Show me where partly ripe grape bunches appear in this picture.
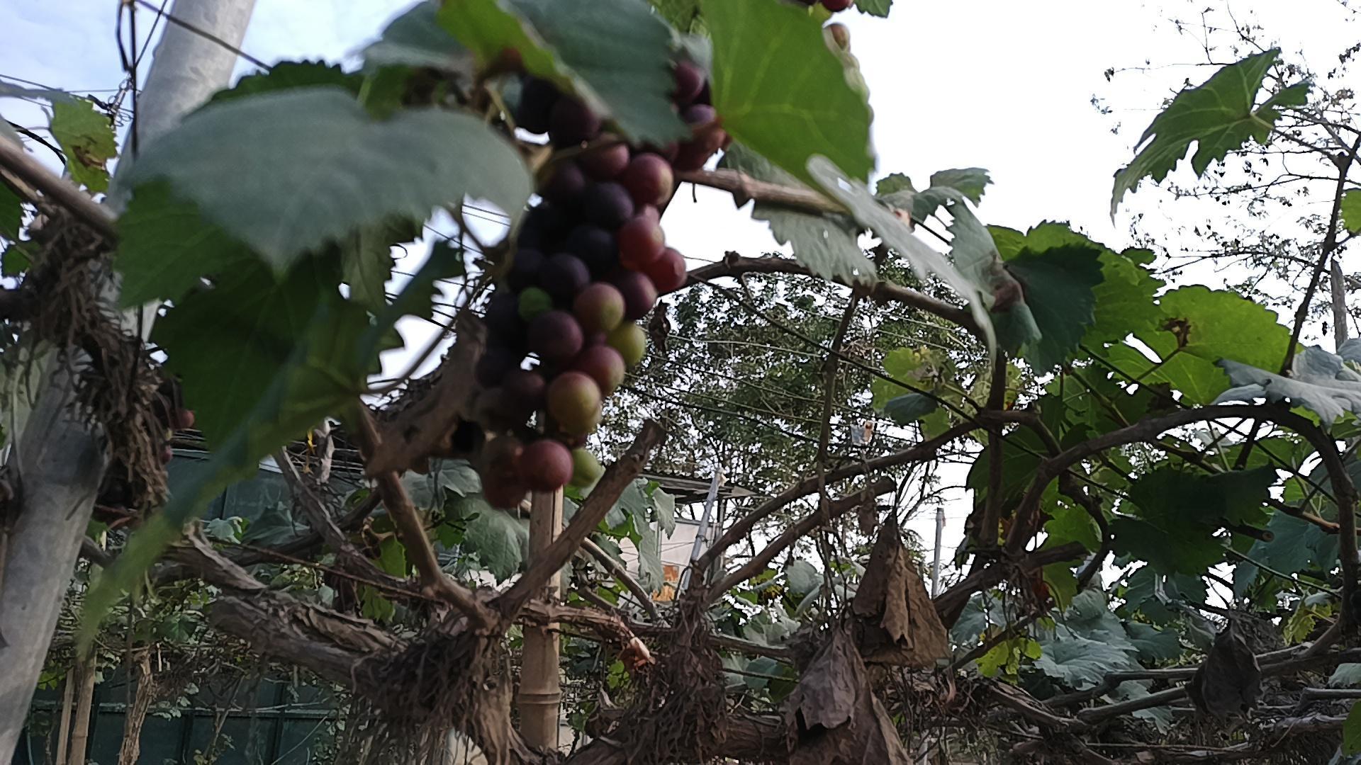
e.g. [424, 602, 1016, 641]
[150, 377, 194, 468]
[451, 50, 727, 504]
